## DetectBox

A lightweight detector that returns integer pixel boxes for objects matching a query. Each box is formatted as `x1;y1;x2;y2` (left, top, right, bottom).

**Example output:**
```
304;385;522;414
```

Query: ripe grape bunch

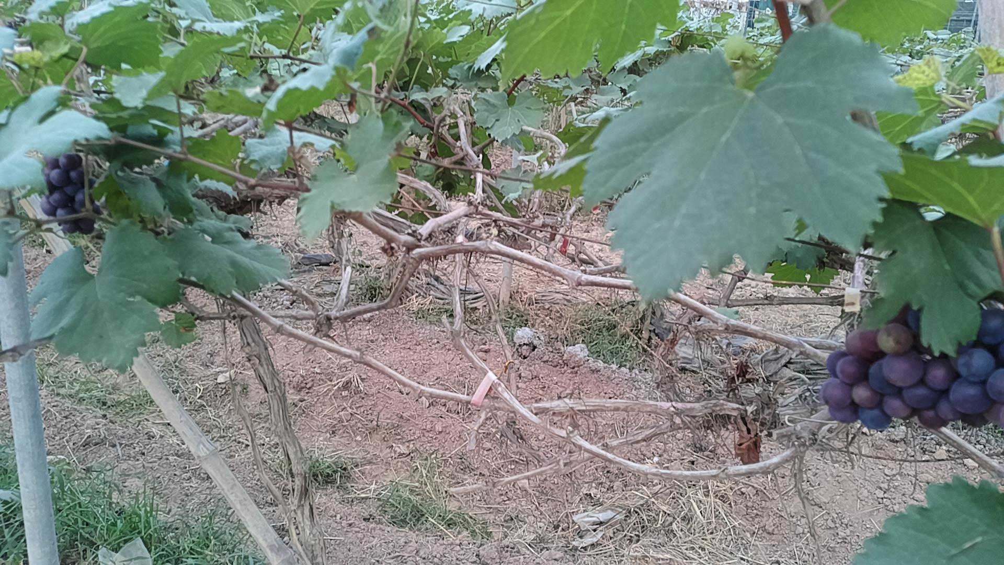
40;153;102;233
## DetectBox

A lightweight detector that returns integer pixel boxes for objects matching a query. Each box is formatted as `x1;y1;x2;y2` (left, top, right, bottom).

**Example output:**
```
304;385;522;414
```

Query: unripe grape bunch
721;36;769;89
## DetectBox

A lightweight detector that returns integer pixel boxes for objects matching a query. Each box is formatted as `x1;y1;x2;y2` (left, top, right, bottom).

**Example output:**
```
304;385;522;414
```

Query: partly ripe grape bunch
819;304;1003;430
